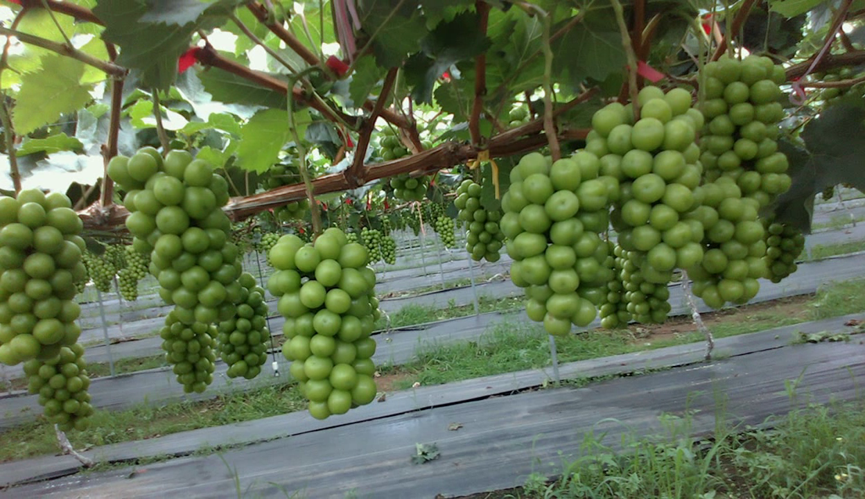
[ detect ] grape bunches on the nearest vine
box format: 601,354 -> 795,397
585,83 -> 719,286
23,342 -> 95,433
107,146 -> 244,325
699,54 -> 792,207
0,187 -> 87,366
688,177 -> 766,308
265,227 -> 378,420
501,149 -> 620,335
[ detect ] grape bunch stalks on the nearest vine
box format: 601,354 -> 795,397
515,1 -> 561,161
724,1 -> 735,60
609,0 -> 642,120
1,98 -> 21,195
286,67 -> 323,239
152,87 -> 172,157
